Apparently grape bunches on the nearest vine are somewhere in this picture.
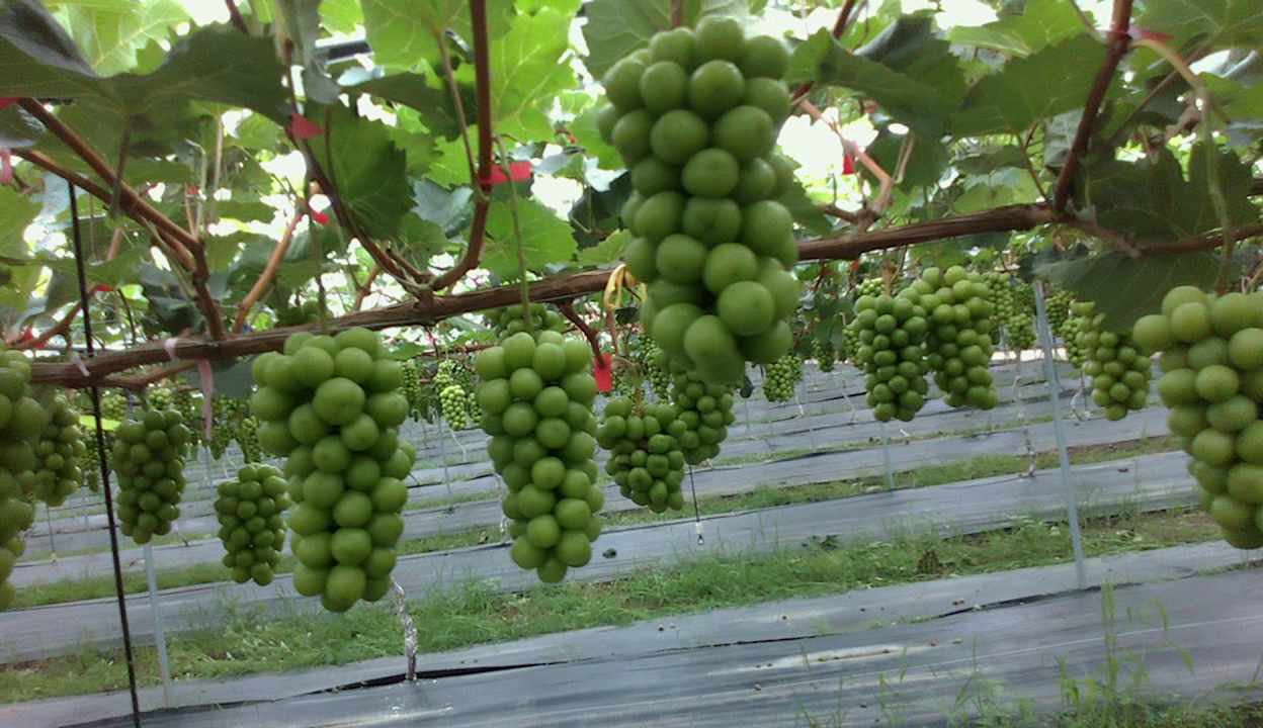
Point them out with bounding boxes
[1132,287,1262,550]
[250,329,416,613]
[593,14,801,384]
[473,330,601,583]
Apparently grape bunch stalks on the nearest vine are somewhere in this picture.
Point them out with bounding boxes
[297,140,330,335]
[1127,39,1236,291]
[668,1,682,25]
[497,139,533,333]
